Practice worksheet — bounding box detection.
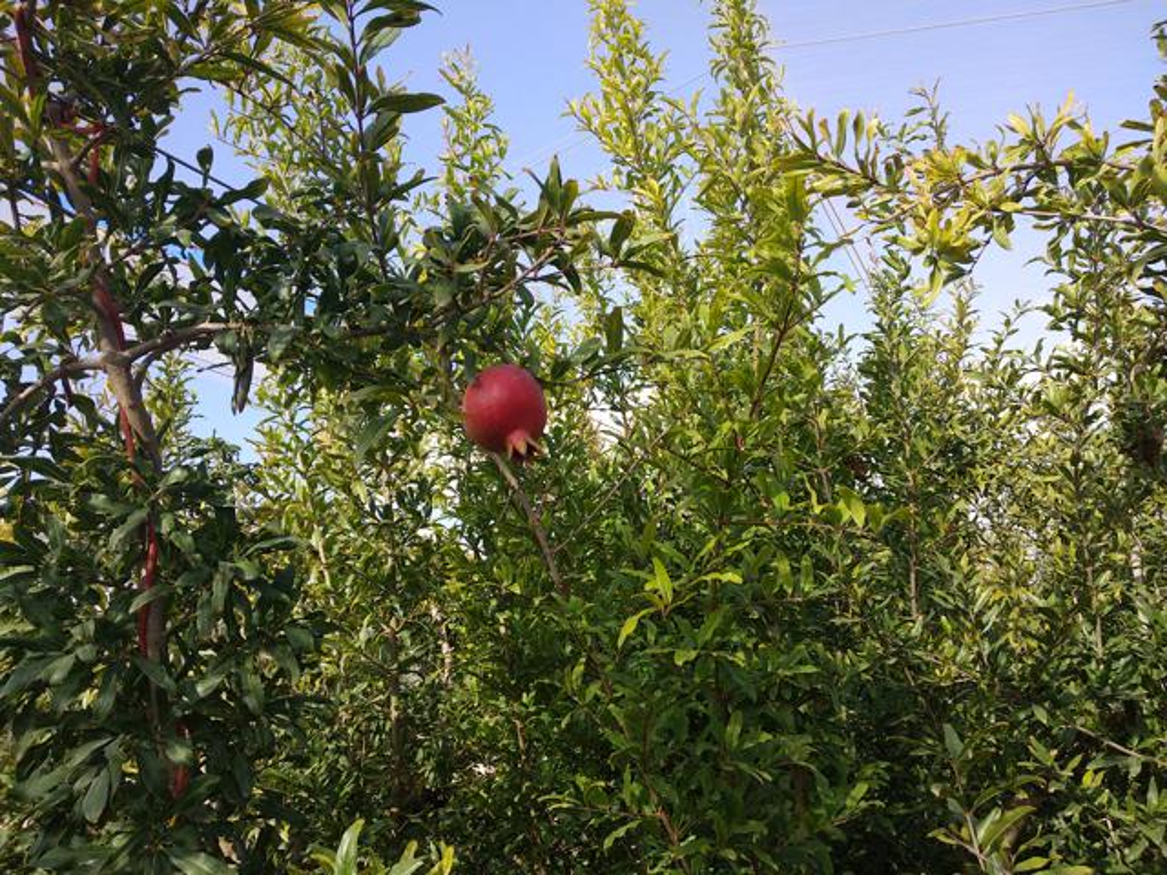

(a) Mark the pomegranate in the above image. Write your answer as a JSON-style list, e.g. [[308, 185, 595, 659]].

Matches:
[[461, 363, 549, 459]]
